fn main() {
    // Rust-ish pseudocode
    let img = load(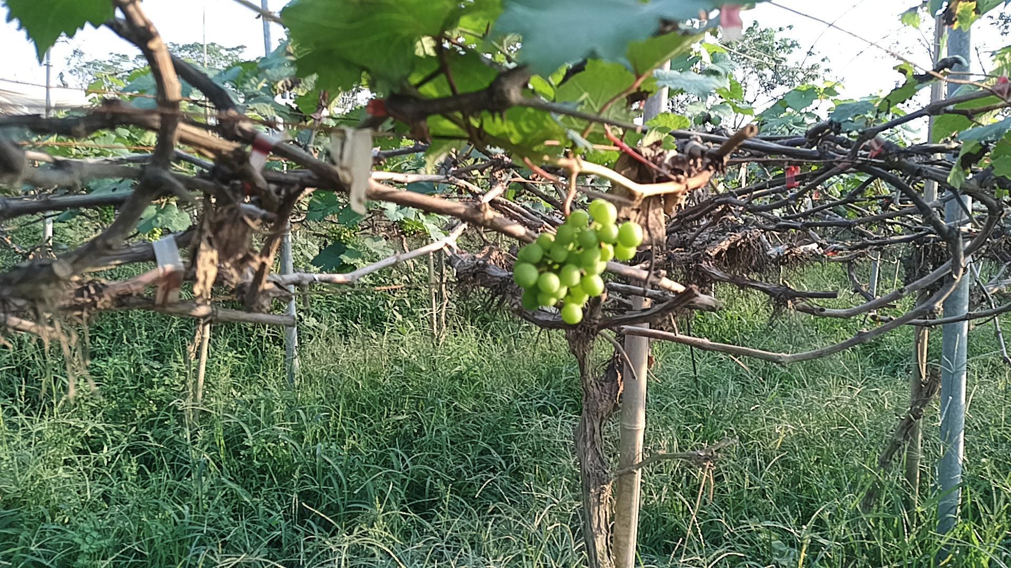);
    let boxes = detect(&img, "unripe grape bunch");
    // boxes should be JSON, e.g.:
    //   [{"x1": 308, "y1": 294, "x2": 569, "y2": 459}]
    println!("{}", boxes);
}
[{"x1": 513, "y1": 199, "x2": 642, "y2": 324}]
